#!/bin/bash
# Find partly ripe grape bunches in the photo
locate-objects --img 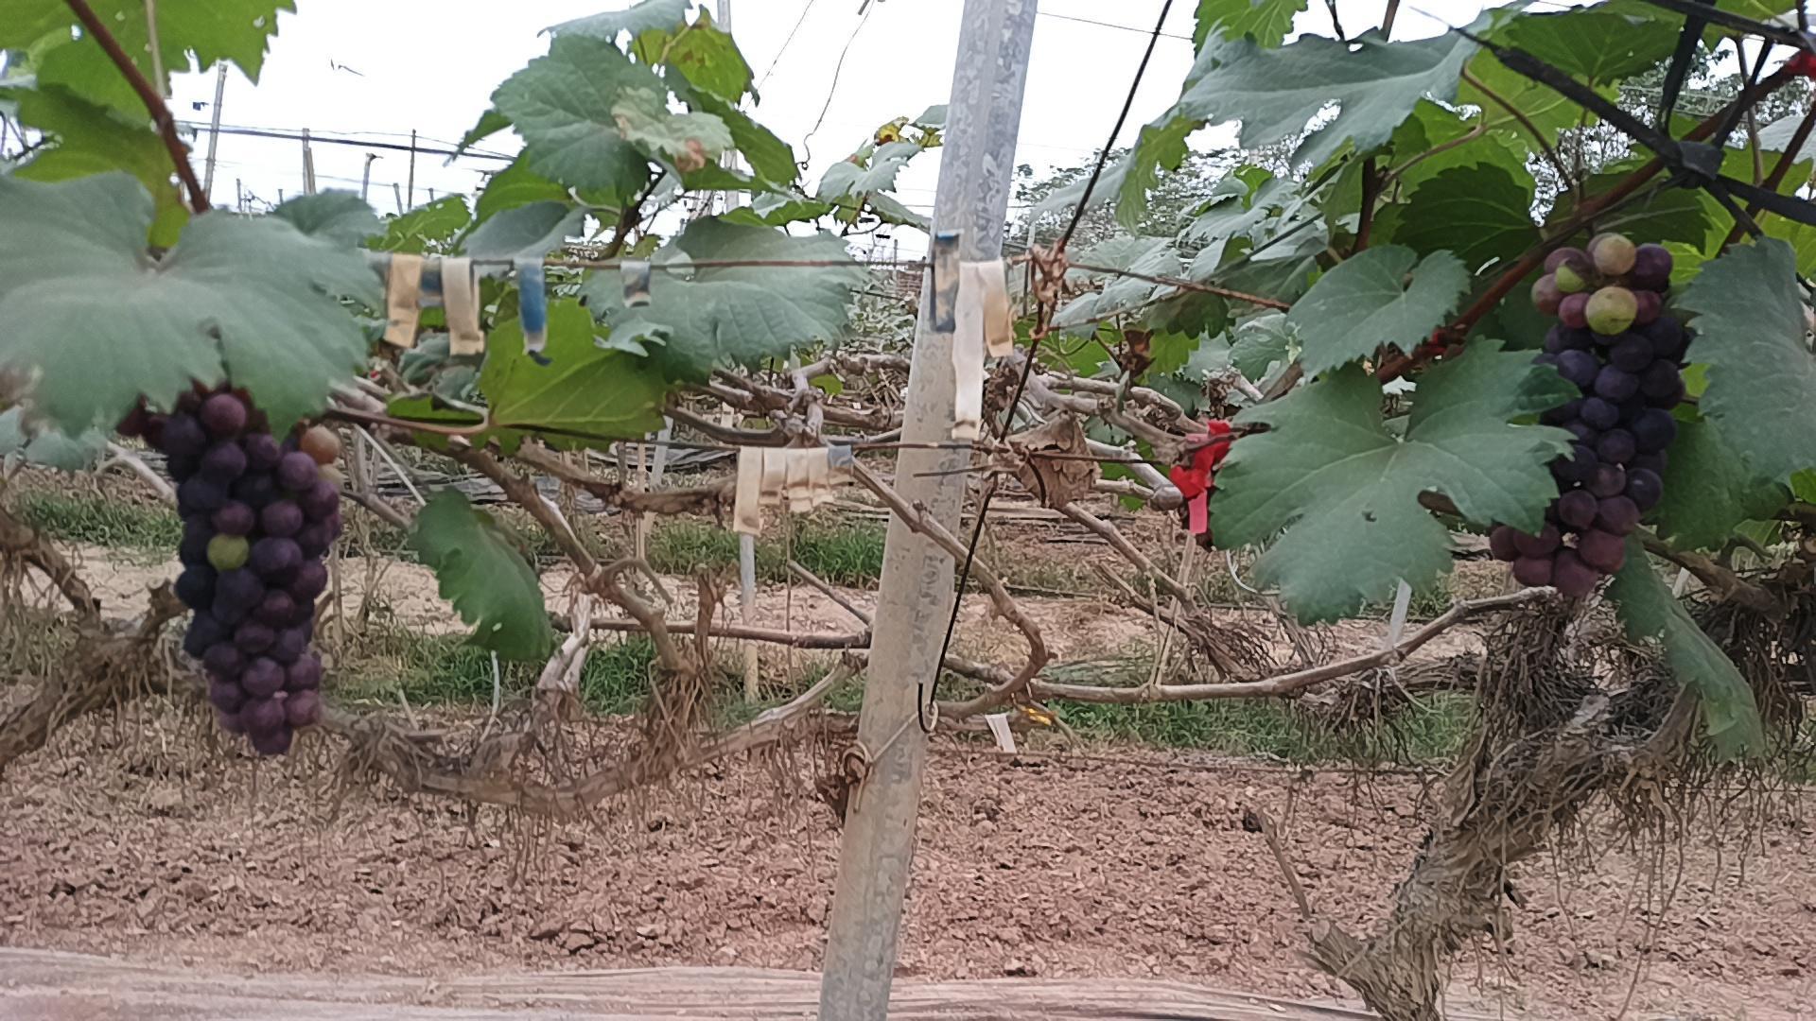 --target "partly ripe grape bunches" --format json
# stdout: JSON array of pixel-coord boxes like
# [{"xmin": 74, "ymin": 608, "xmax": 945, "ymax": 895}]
[
  {"xmin": 119, "ymin": 384, "xmax": 344, "ymax": 753},
  {"xmin": 1491, "ymin": 232, "xmax": 1693, "ymax": 598}
]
